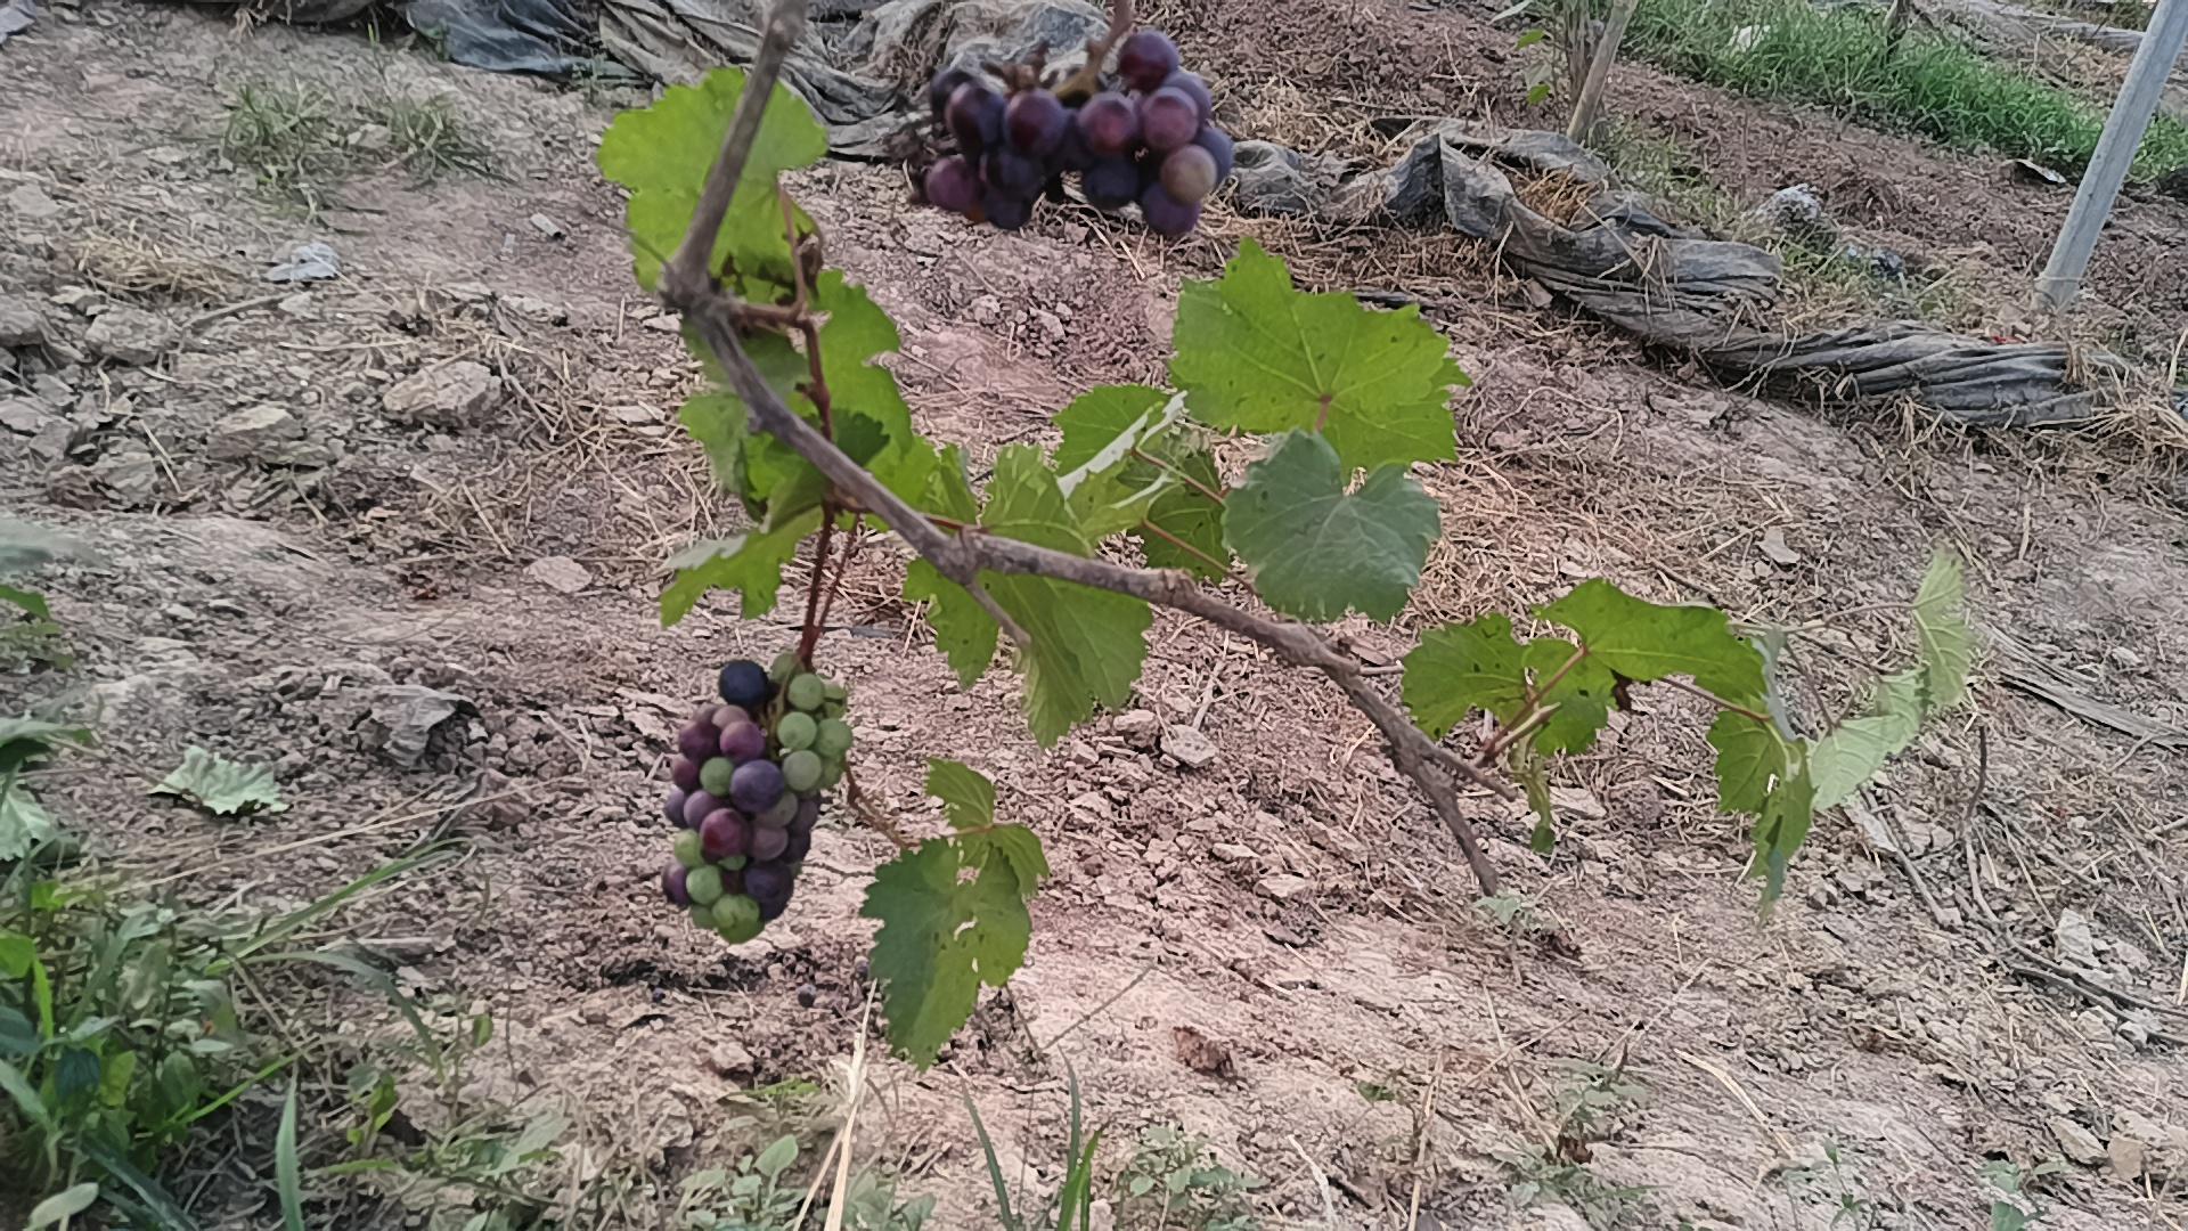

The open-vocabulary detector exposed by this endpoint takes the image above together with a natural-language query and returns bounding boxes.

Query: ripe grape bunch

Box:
[917,31,1232,237]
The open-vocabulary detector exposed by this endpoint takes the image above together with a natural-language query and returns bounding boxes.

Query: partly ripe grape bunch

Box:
[661,653,852,943]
